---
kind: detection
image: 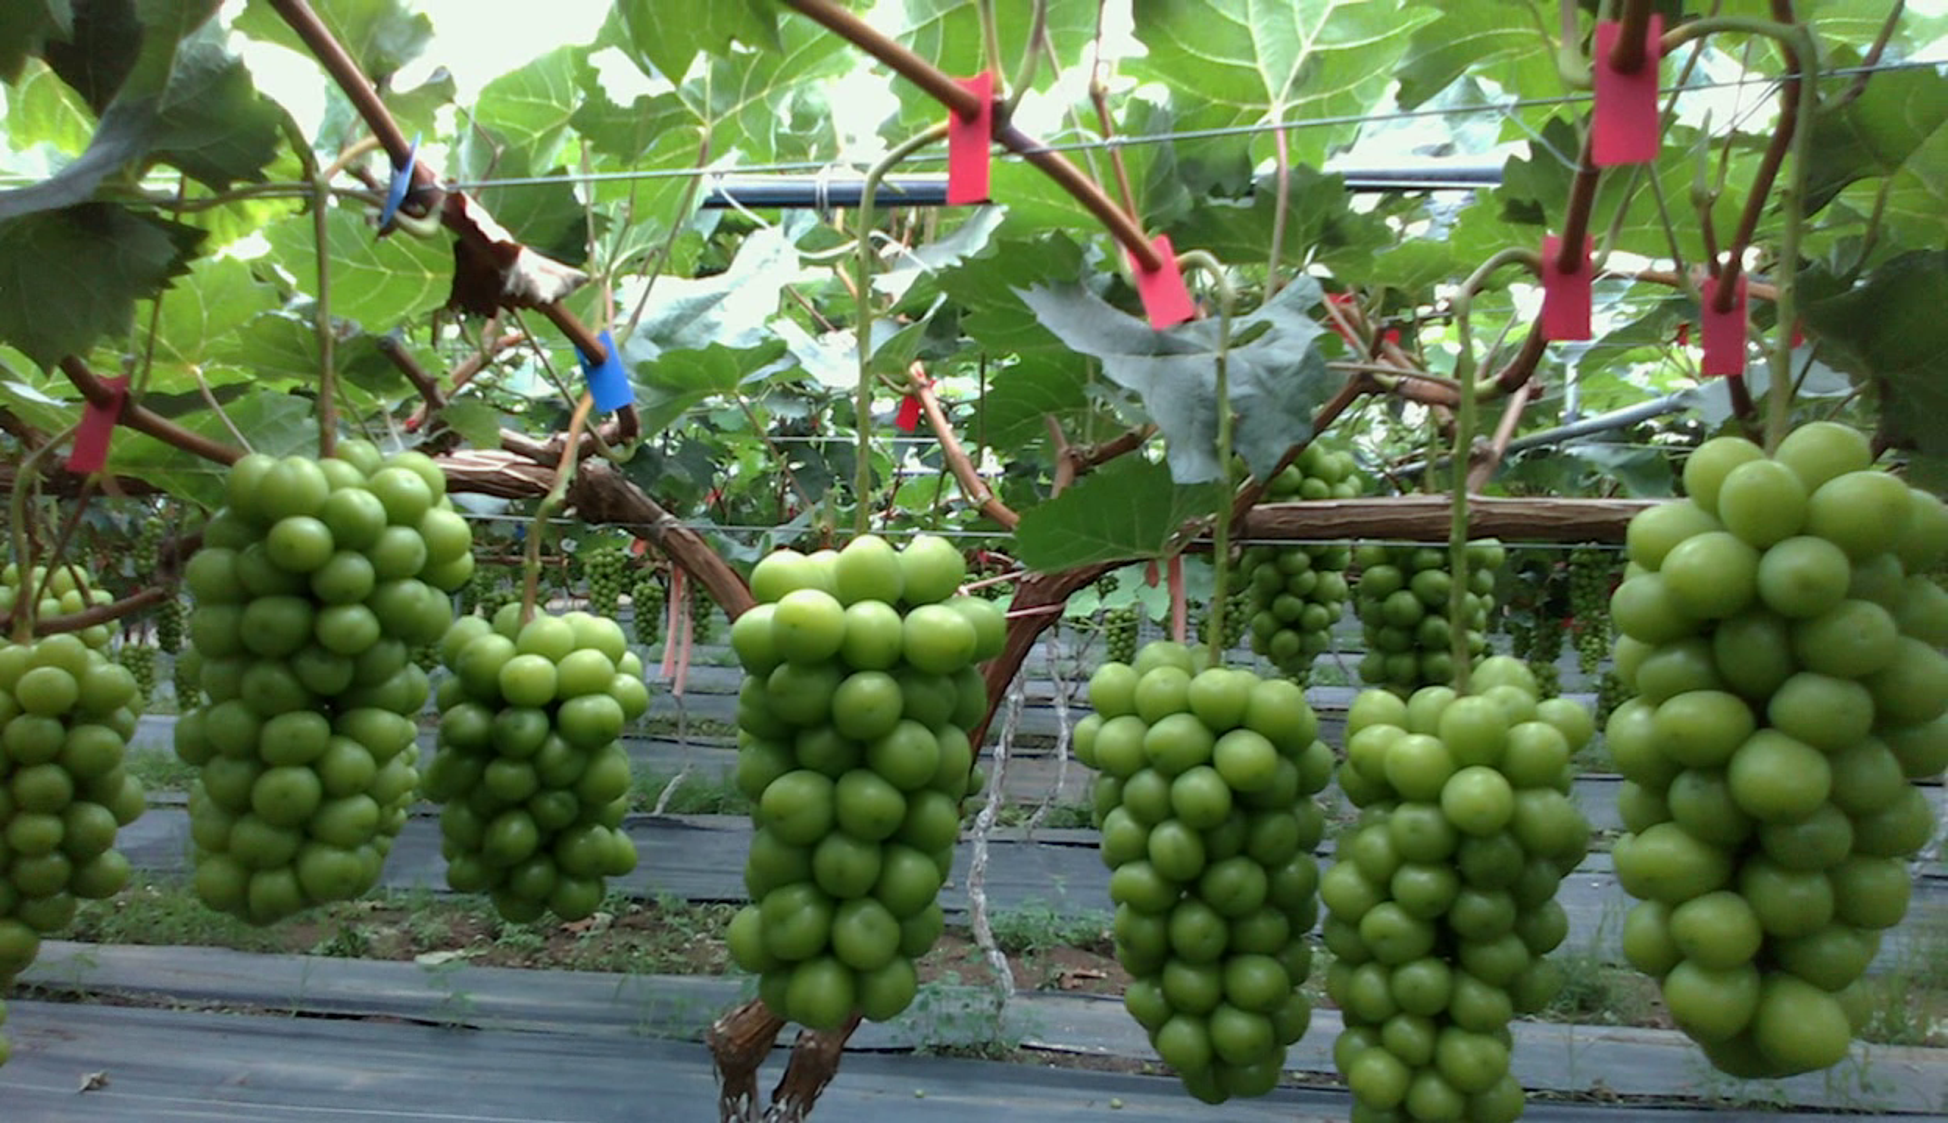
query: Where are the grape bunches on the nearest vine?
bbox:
[1606,423,1945,1081]
[173,440,476,926]
[1321,655,1594,1121]
[421,602,649,923]
[724,535,1007,1031]
[0,632,150,986]
[1071,641,1336,1106]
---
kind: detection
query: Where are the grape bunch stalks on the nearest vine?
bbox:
[1175,250,1233,668]
[259,94,339,457]
[852,120,947,538]
[1449,246,1541,699]
[1662,16,1820,459]
[9,418,78,644]
[517,390,595,633]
